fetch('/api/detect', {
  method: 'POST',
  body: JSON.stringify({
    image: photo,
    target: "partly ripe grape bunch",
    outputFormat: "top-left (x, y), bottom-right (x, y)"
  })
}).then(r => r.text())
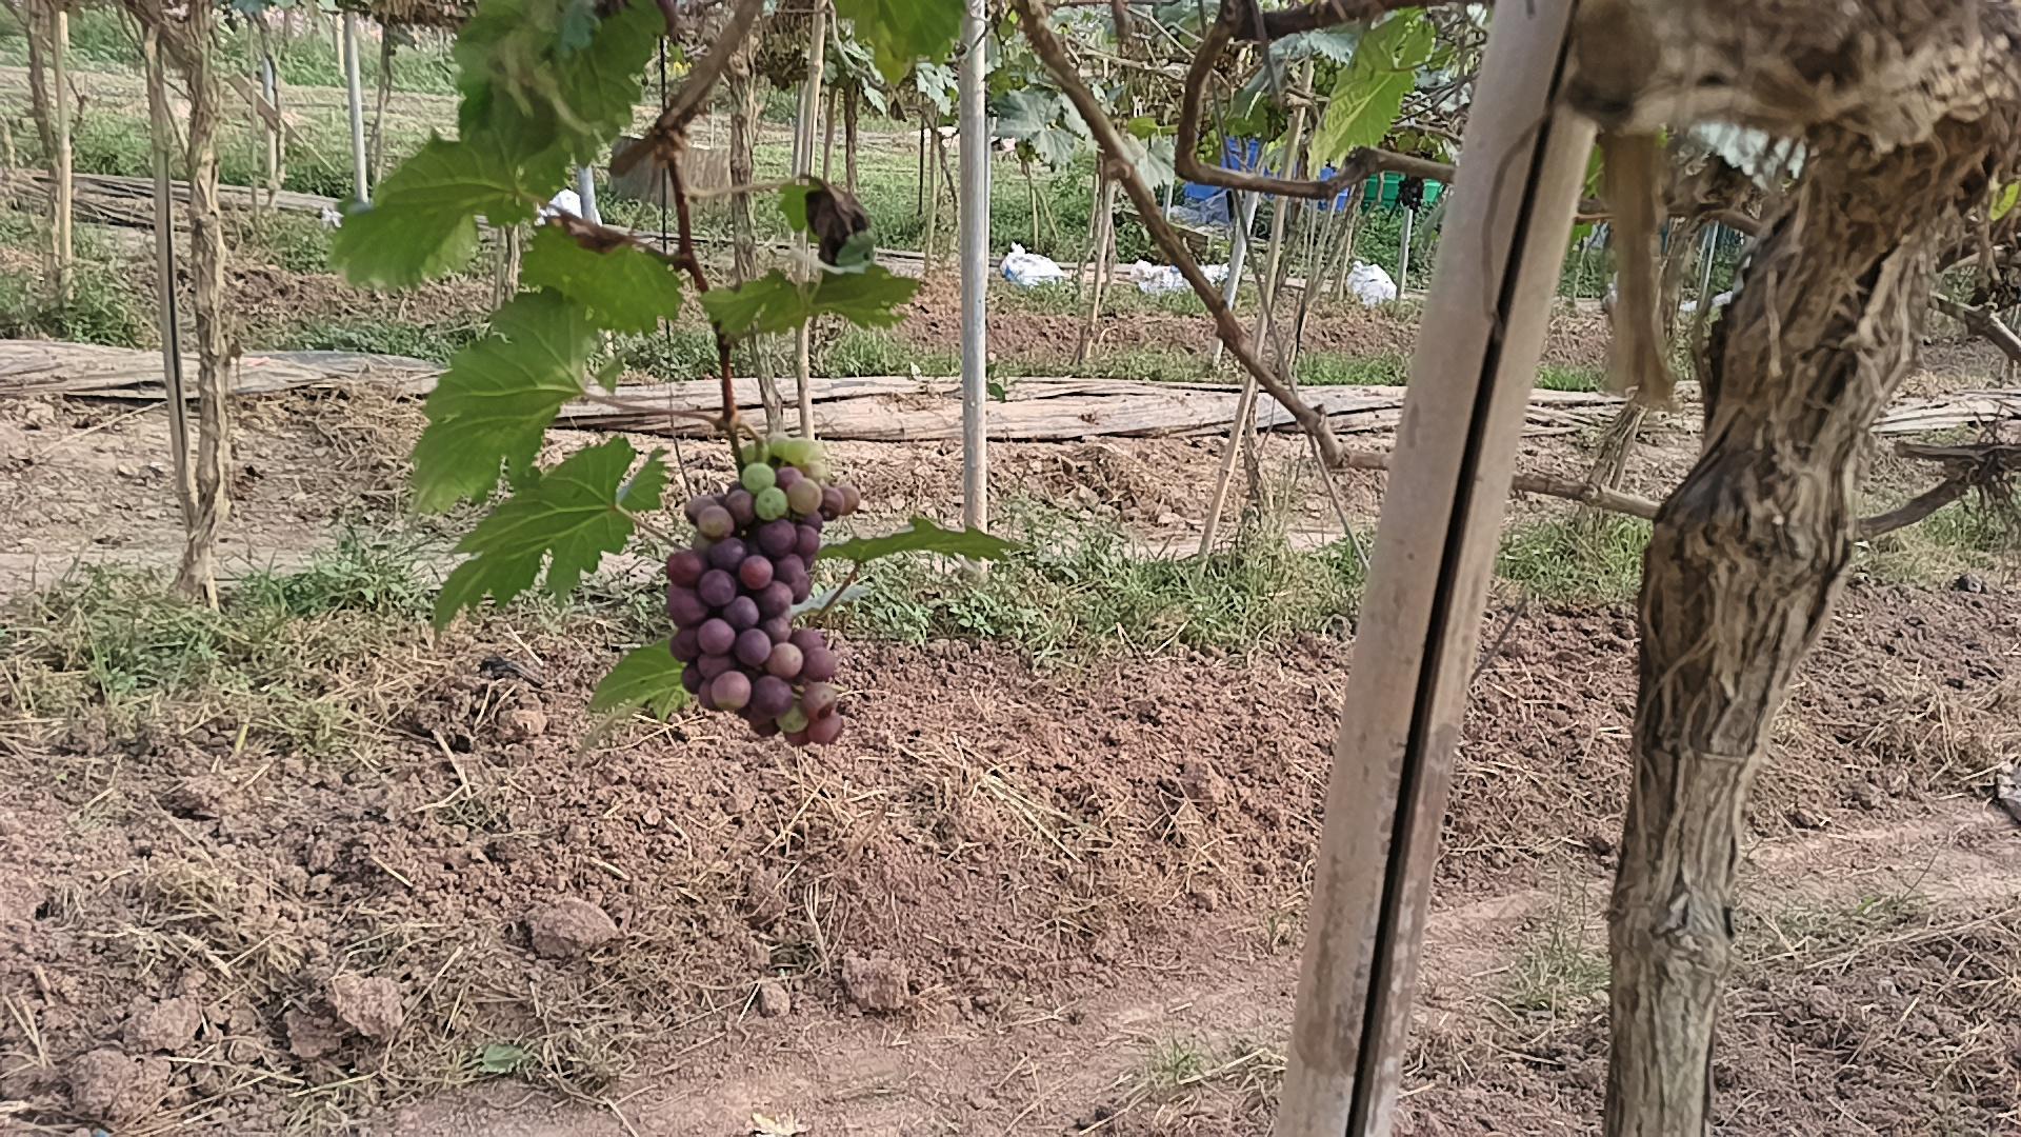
top-left (665, 432), bottom-right (860, 747)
